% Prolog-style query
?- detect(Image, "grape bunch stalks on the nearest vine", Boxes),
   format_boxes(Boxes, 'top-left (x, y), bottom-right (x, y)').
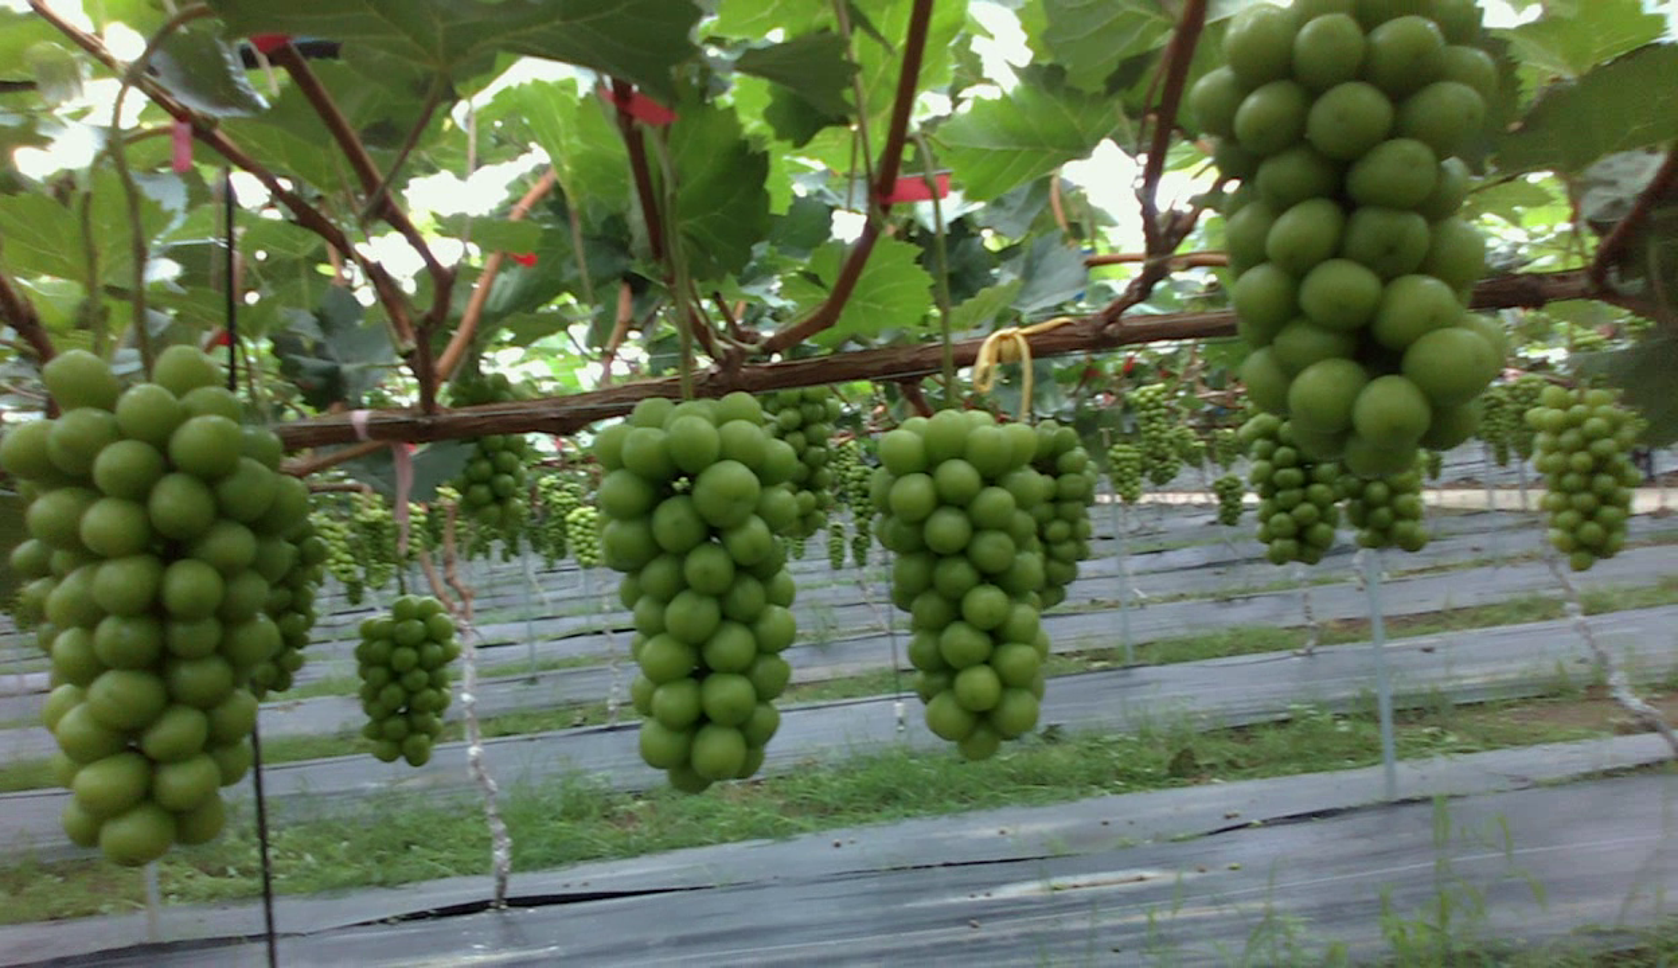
top-left (644, 128), bottom-right (695, 402)
top-left (914, 138), bottom-right (959, 405)
top-left (109, 5), bottom-right (202, 380)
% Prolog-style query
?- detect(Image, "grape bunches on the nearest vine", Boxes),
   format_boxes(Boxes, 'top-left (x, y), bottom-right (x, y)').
top-left (1183, 0), bottom-right (1511, 479)
top-left (592, 395), bottom-right (797, 797)
top-left (1, 341), bottom-right (307, 875)
top-left (870, 410), bottom-right (1050, 760)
